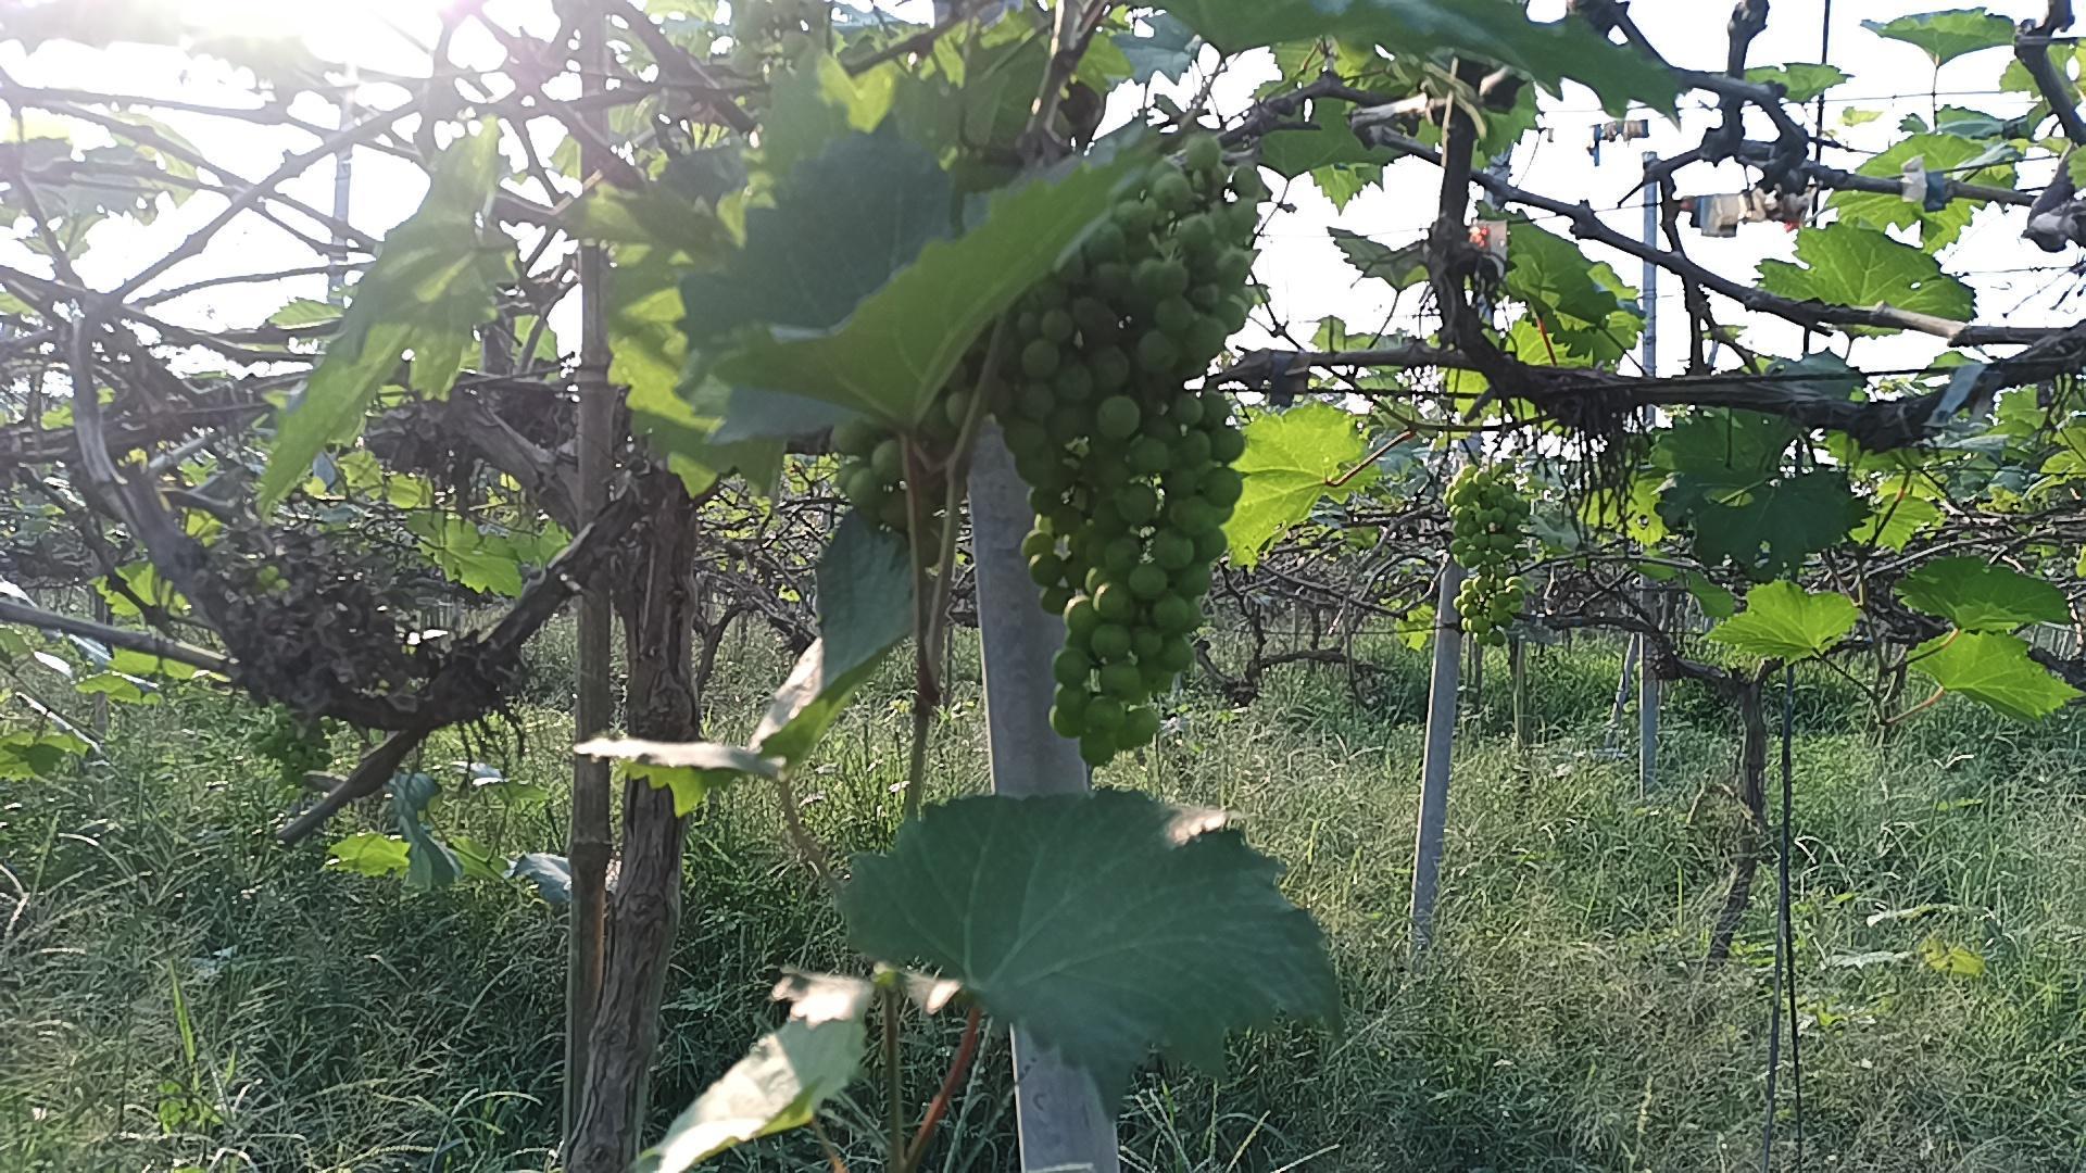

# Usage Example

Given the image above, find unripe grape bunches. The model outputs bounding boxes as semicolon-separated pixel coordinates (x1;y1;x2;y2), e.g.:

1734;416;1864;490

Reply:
1445;458;1532;647
995;133;1265;766
247;702;338;798
828;327;991;566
